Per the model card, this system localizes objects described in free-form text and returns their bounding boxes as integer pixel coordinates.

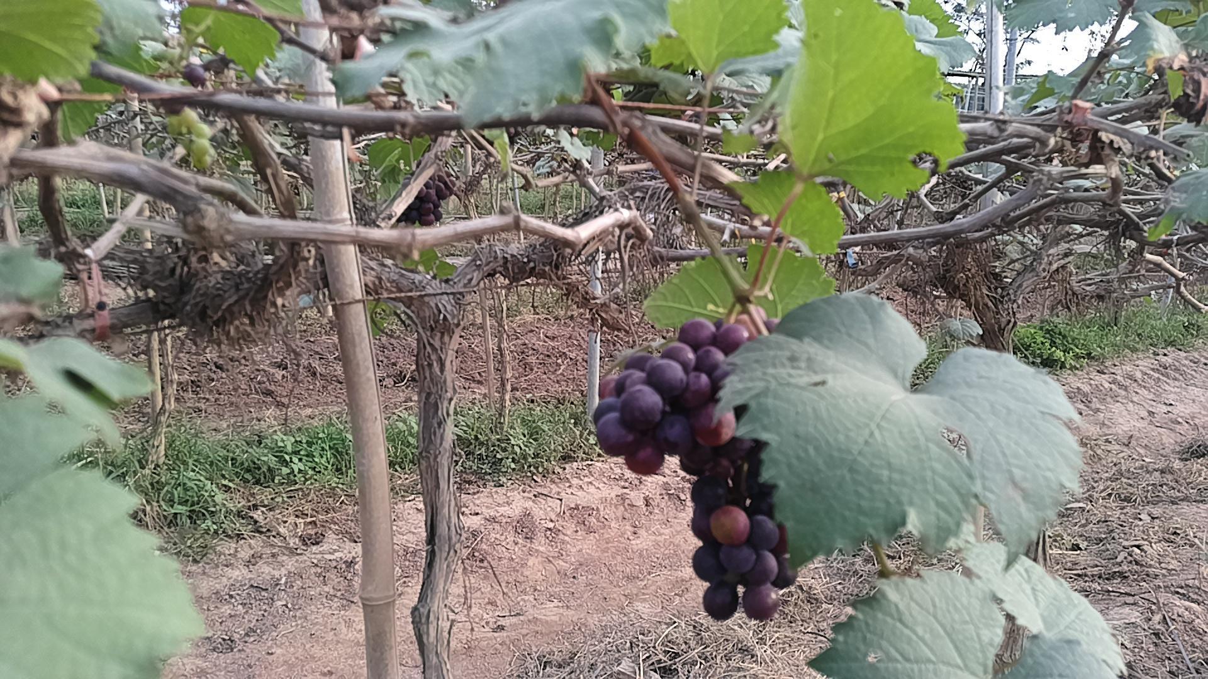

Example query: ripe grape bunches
[396,169,454,226]
[594,319,795,619]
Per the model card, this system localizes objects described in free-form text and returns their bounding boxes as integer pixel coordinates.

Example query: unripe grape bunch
[166,108,215,170]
